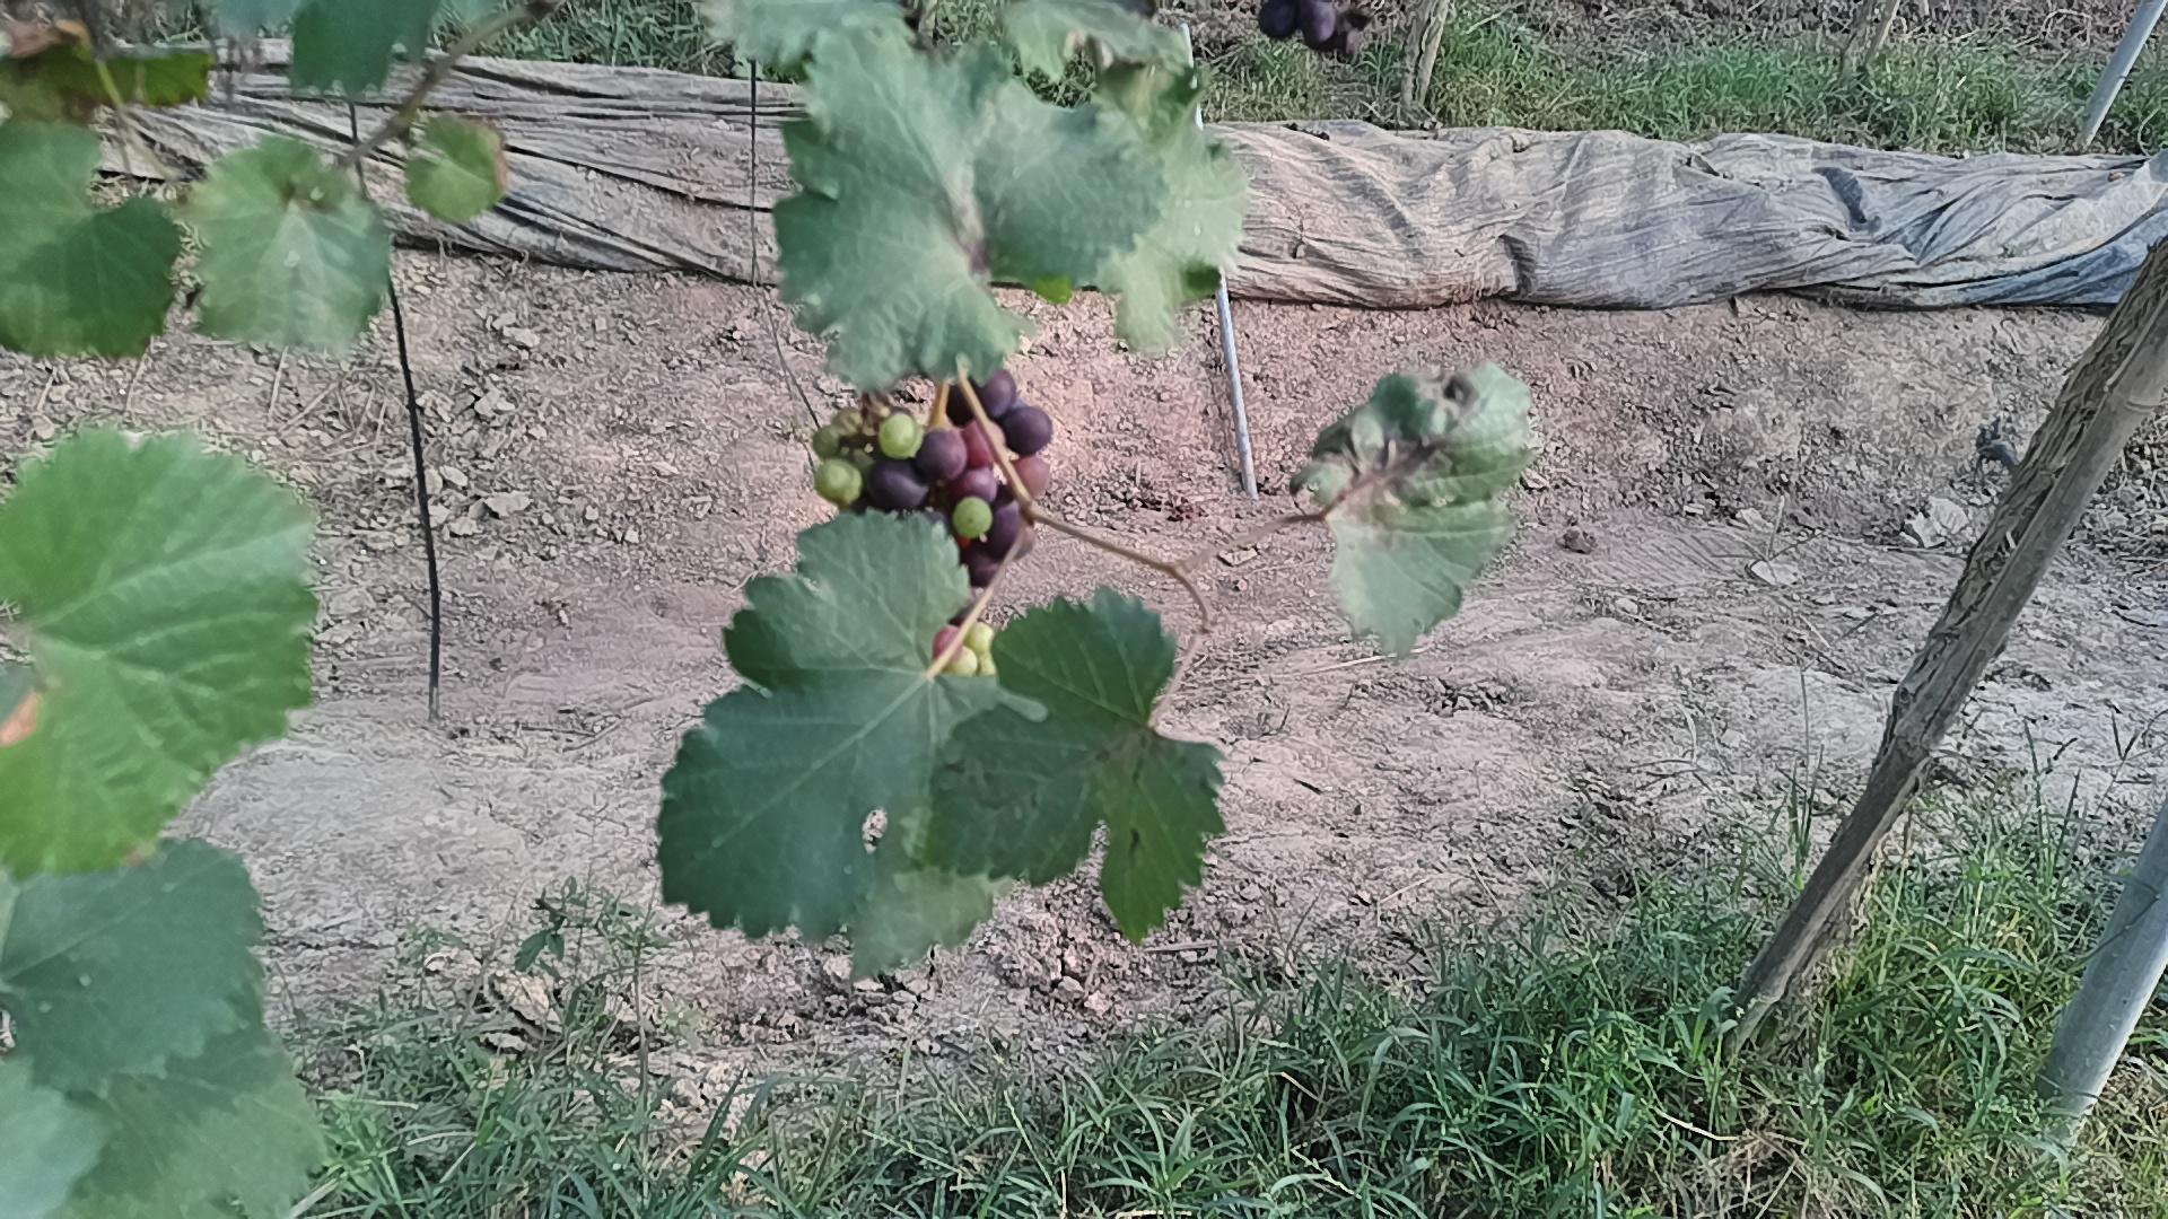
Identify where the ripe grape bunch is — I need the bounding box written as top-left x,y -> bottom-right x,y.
1257,0 -> 1373,62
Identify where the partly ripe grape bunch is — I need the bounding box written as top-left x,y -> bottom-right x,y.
812,369 -> 1051,675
